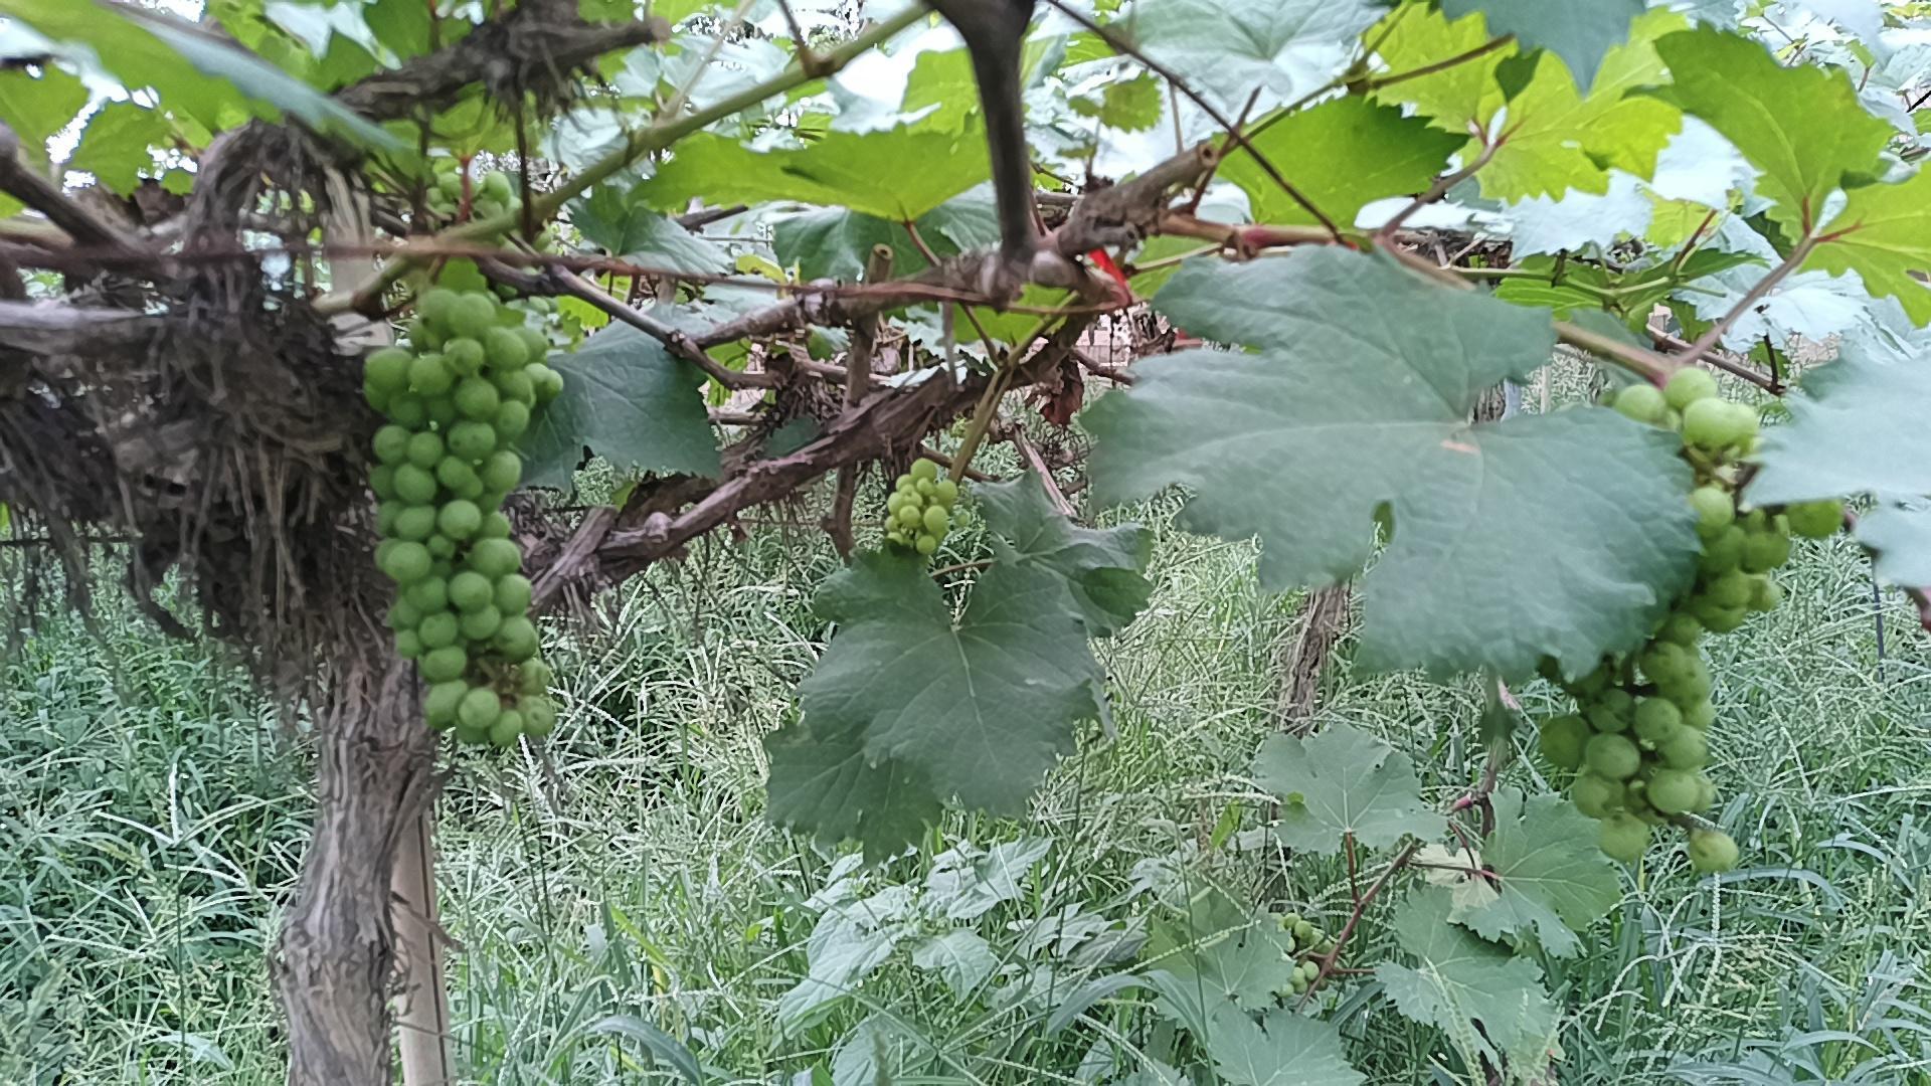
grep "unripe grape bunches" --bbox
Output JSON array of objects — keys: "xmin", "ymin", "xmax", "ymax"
[
  {"xmin": 365, "ymin": 287, "xmax": 561, "ymax": 745},
  {"xmin": 427, "ymin": 158, "xmax": 559, "ymax": 295},
  {"xmin": 1541, "ymin": 369, "xmax": 1842, "ymax": 872},
  {"xmin": 884, "ymin": 458, "xmax": 960, "ymax": 556}
]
